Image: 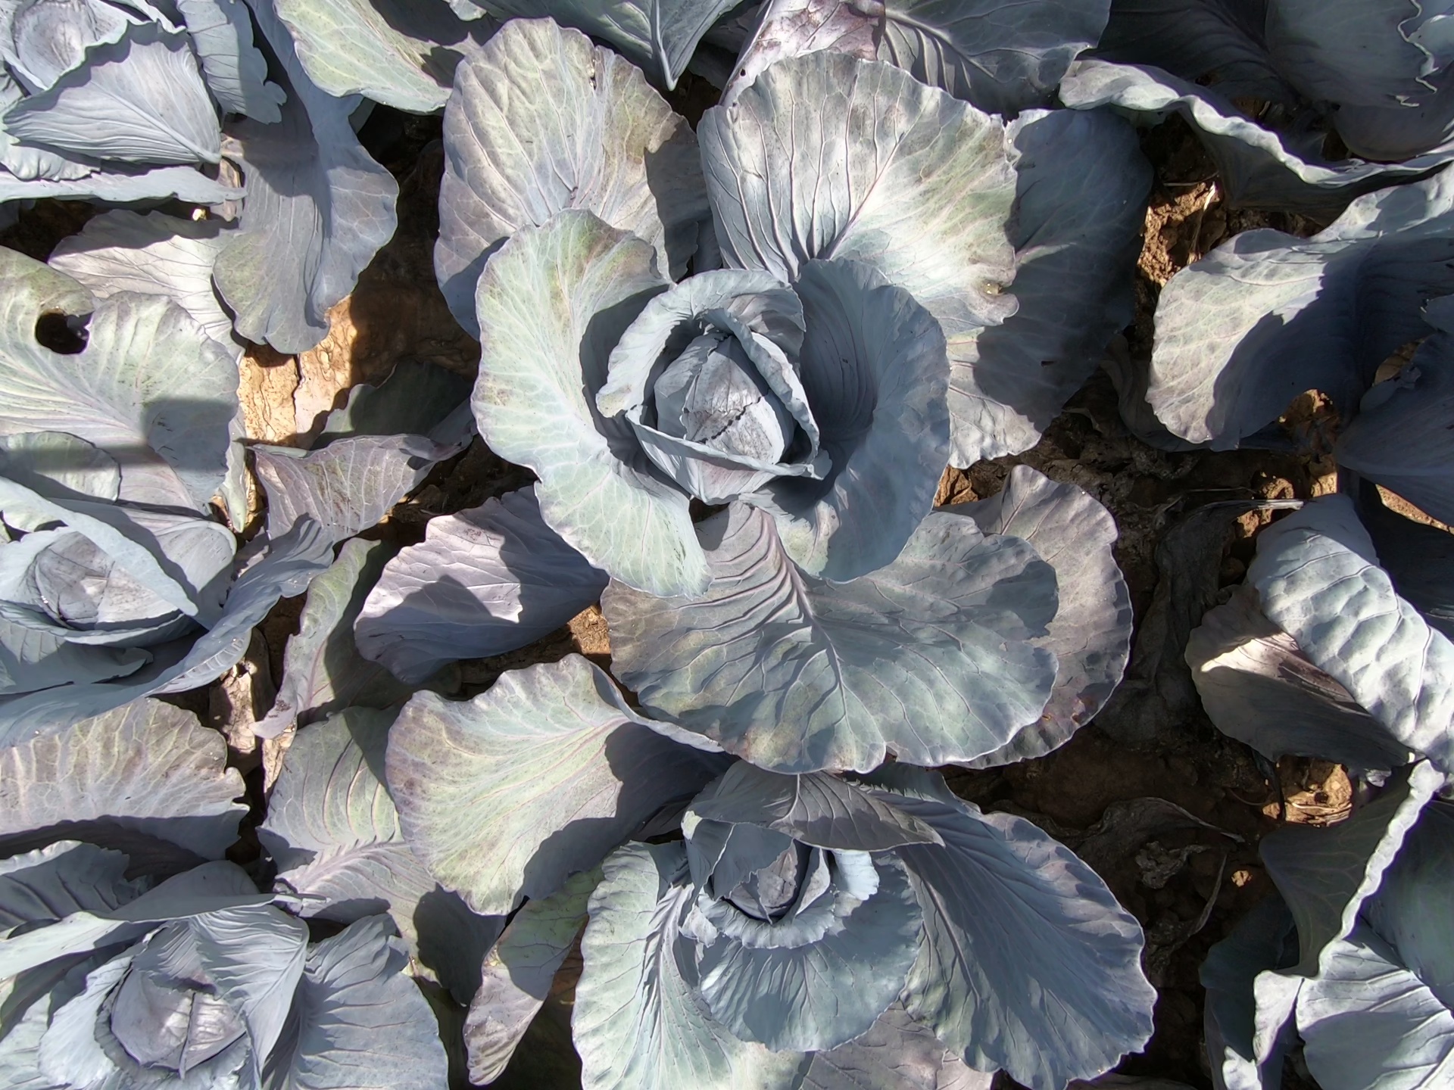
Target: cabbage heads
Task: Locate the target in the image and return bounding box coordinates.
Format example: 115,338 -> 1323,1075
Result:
106,905 -> 292,1076
712,803 -> 831,919
30,517 -> 207,640
4,0 -> 202,158
657,337 -> 792,490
